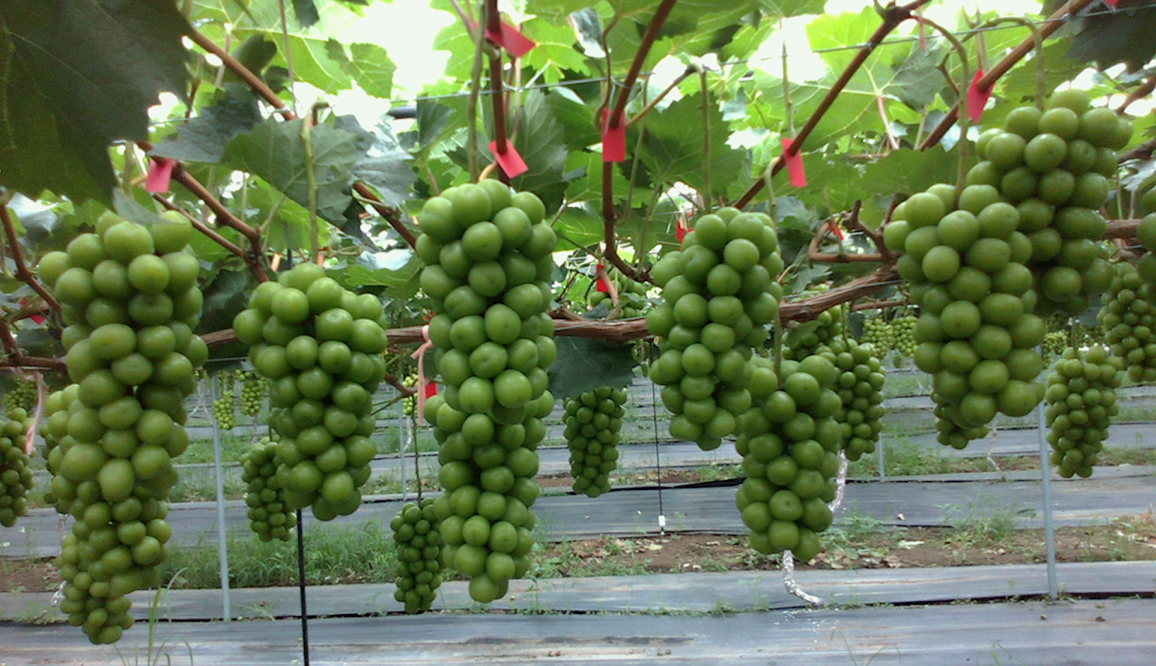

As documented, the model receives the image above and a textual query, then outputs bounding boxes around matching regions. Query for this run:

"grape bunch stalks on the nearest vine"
[467,0,487,184]
[939,16,1047,111]
[762,155,785,374]
[301,115,319,264]
[626,64,711,214]
[908,9,969,209]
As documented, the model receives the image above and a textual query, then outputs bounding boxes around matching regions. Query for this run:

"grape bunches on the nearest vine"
[415,179,558,424]
[422,390,554,603]
[885,183,1047,427]
[735,355,841,561]
[647,206,783,449]
[233,262,387,522]
[965,90,1133,316]
[37,207,208,500]
[44,383,173,597]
